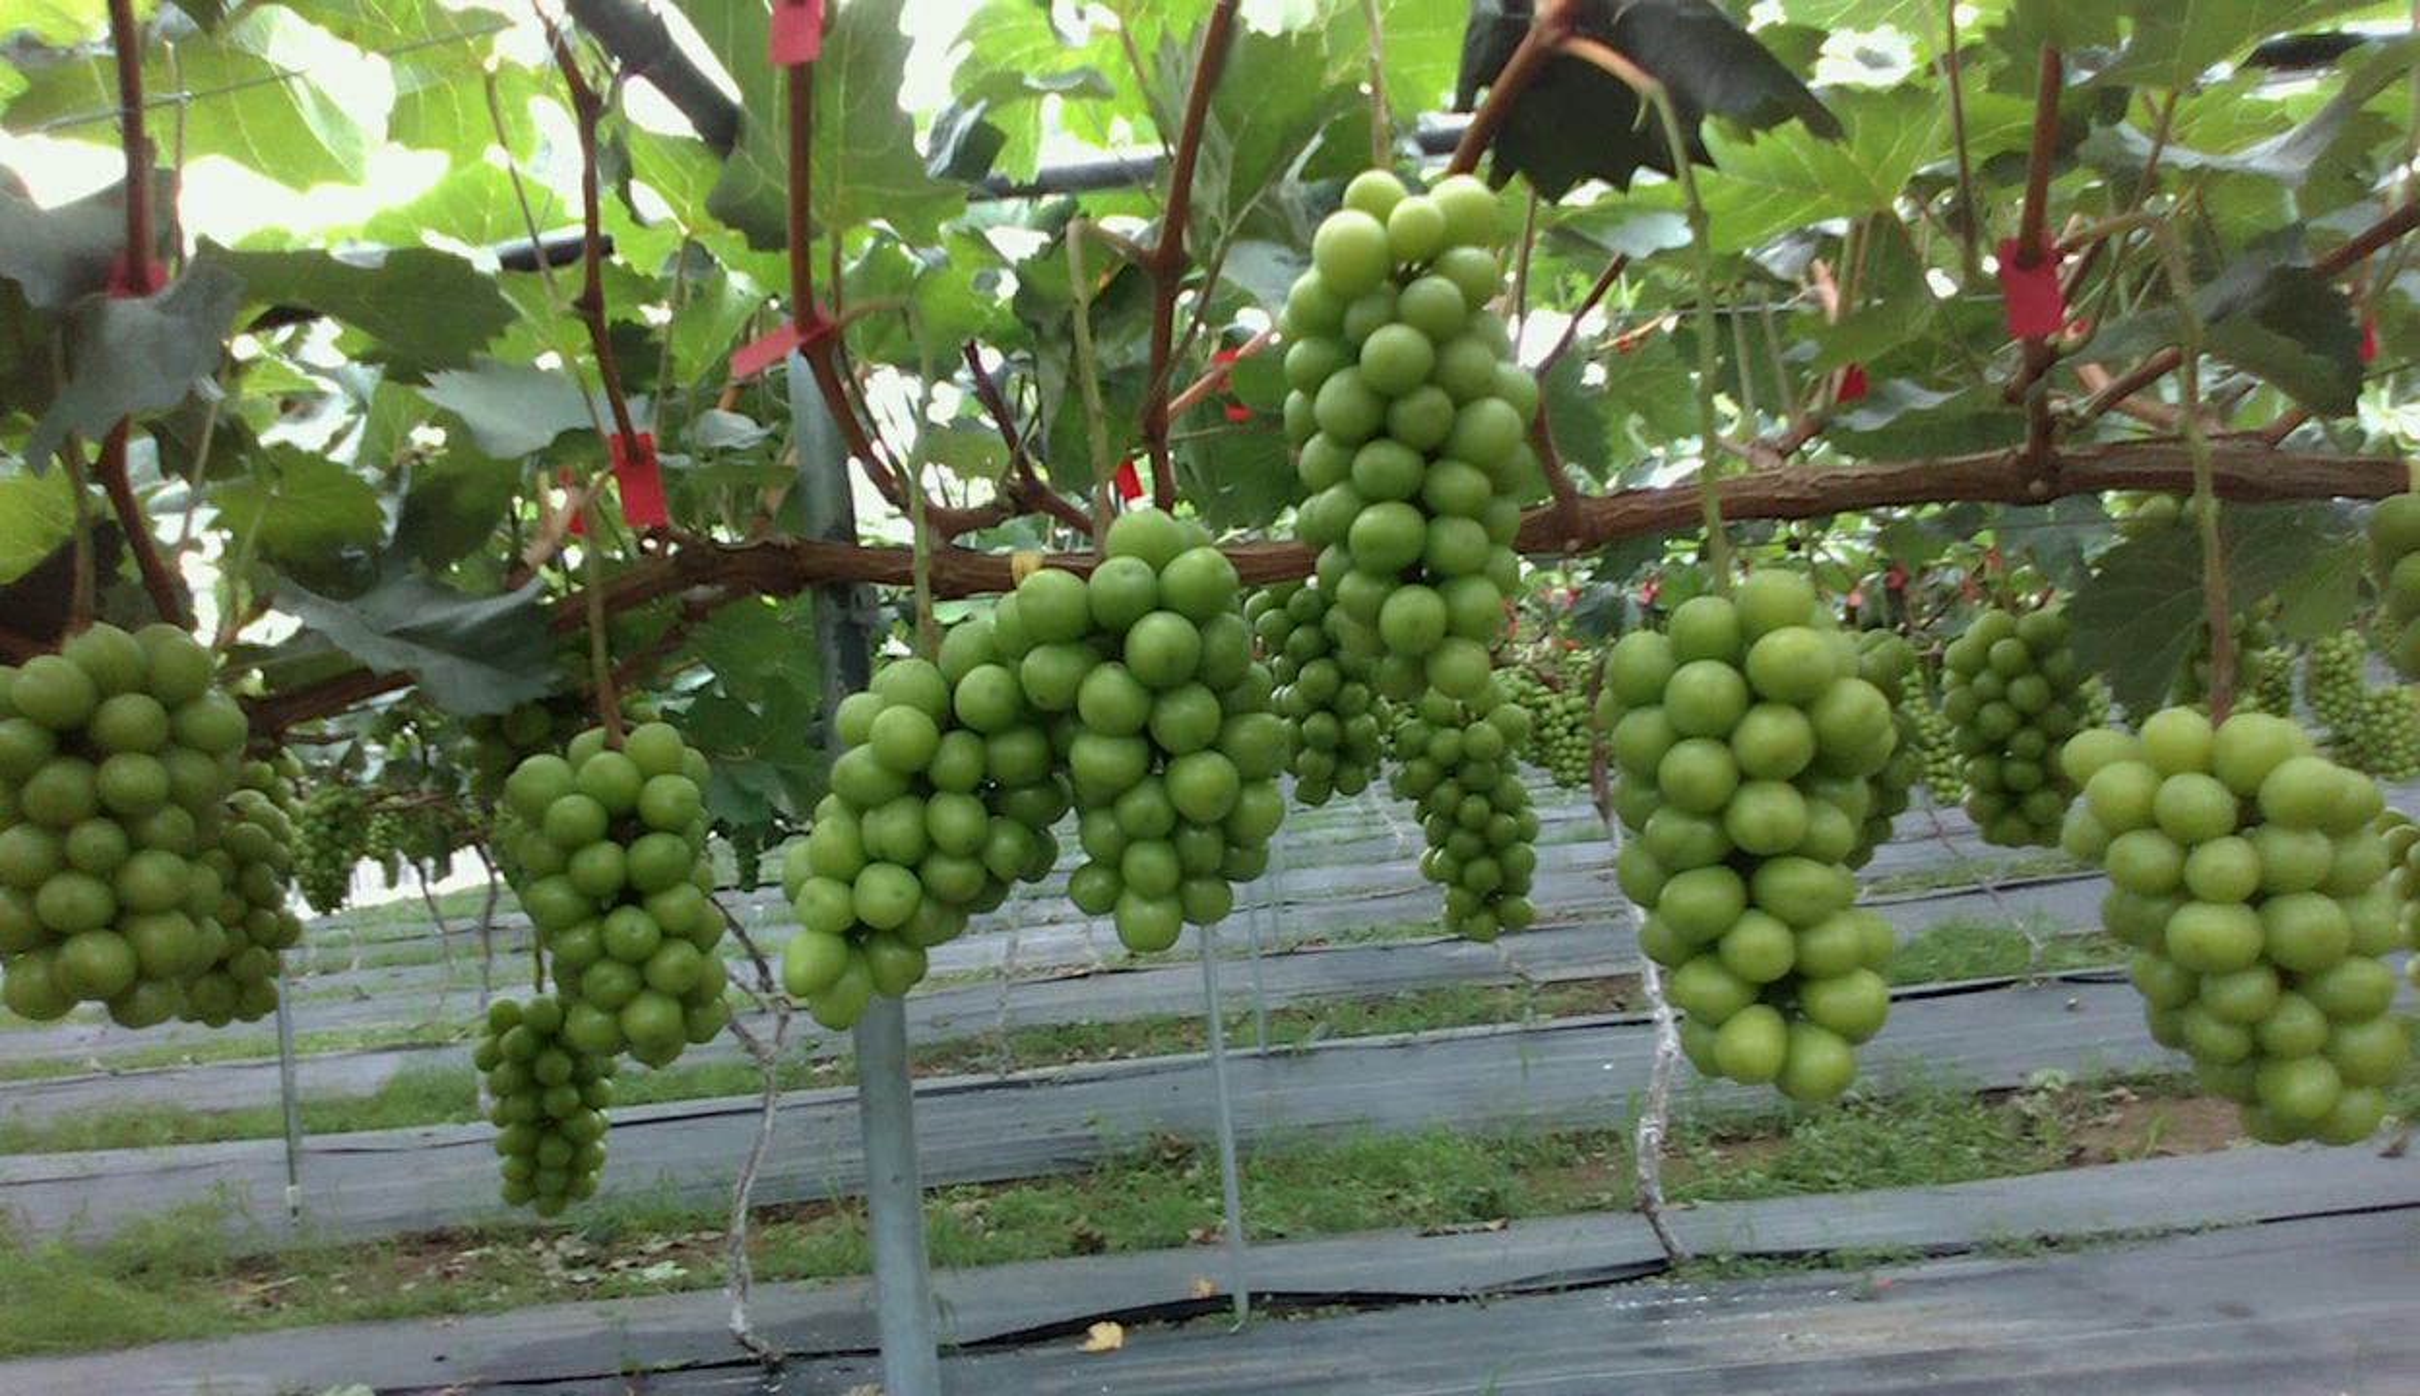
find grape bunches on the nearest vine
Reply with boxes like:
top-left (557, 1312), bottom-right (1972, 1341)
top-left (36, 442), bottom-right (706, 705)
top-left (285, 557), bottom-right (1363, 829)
top-left (2059, 704), bottom-right (2404, 1146)
top-left (1594, 568), bottom-right (1896, 1097)
top-left (993, 508), bottom-right (1291, 952)
top-left (0, 624), bottom-right (248, 1030)
top-left (506, 723), bottom-right (727, 1070)
top-left (1278, 169), bottom-right (1538, 706)
top-left (780, 619), bottom-right (1074, 1031)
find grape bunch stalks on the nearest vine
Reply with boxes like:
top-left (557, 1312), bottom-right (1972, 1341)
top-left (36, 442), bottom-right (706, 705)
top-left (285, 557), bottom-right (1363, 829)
top-left (844, 297), bottom-right (939, 661)
top-left (2073, 215), bottom-right (2232, 725)
top-left (1361, 0), bottom-right (1388, 169)
top-left (1563, 39), bottom-right (1728, 595)
top-left (578, 471), bottom-right (619, 748)
top-left (1065, 219), bottom-right (1148, 562)
top-left (66, 440), bottom-right (95, 628)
